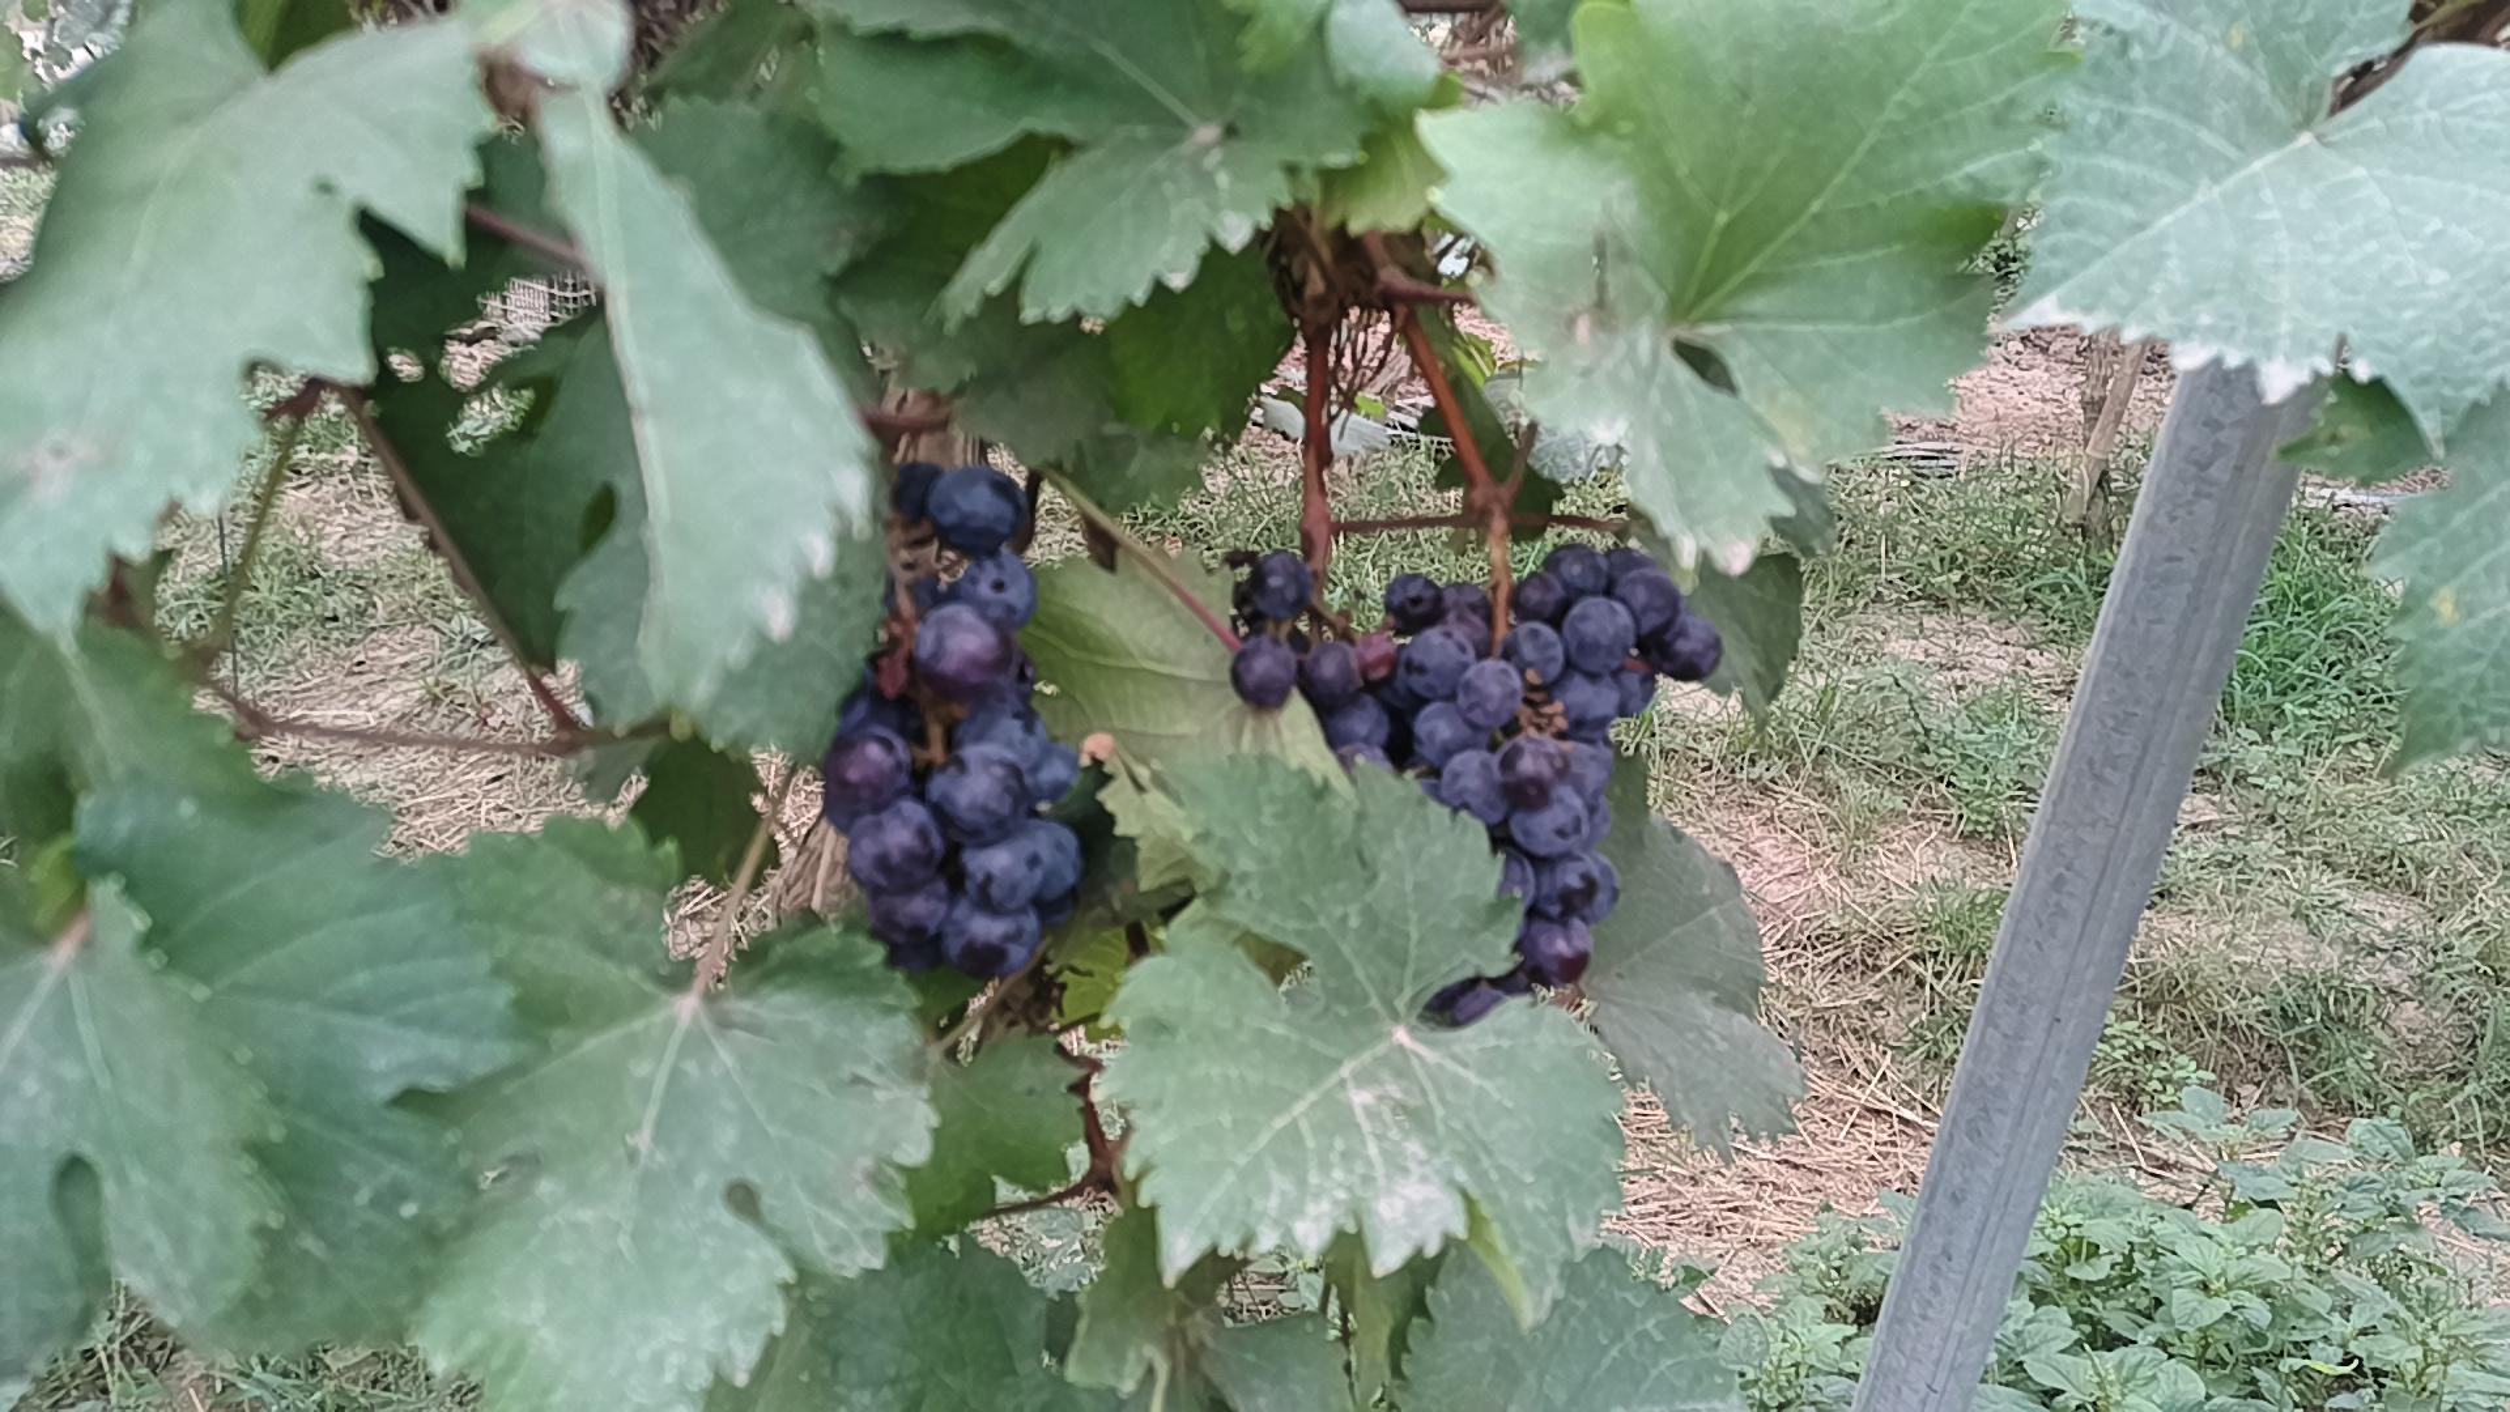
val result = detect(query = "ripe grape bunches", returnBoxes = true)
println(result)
[1230,545,1722,1025]
[822,463,1081,982]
